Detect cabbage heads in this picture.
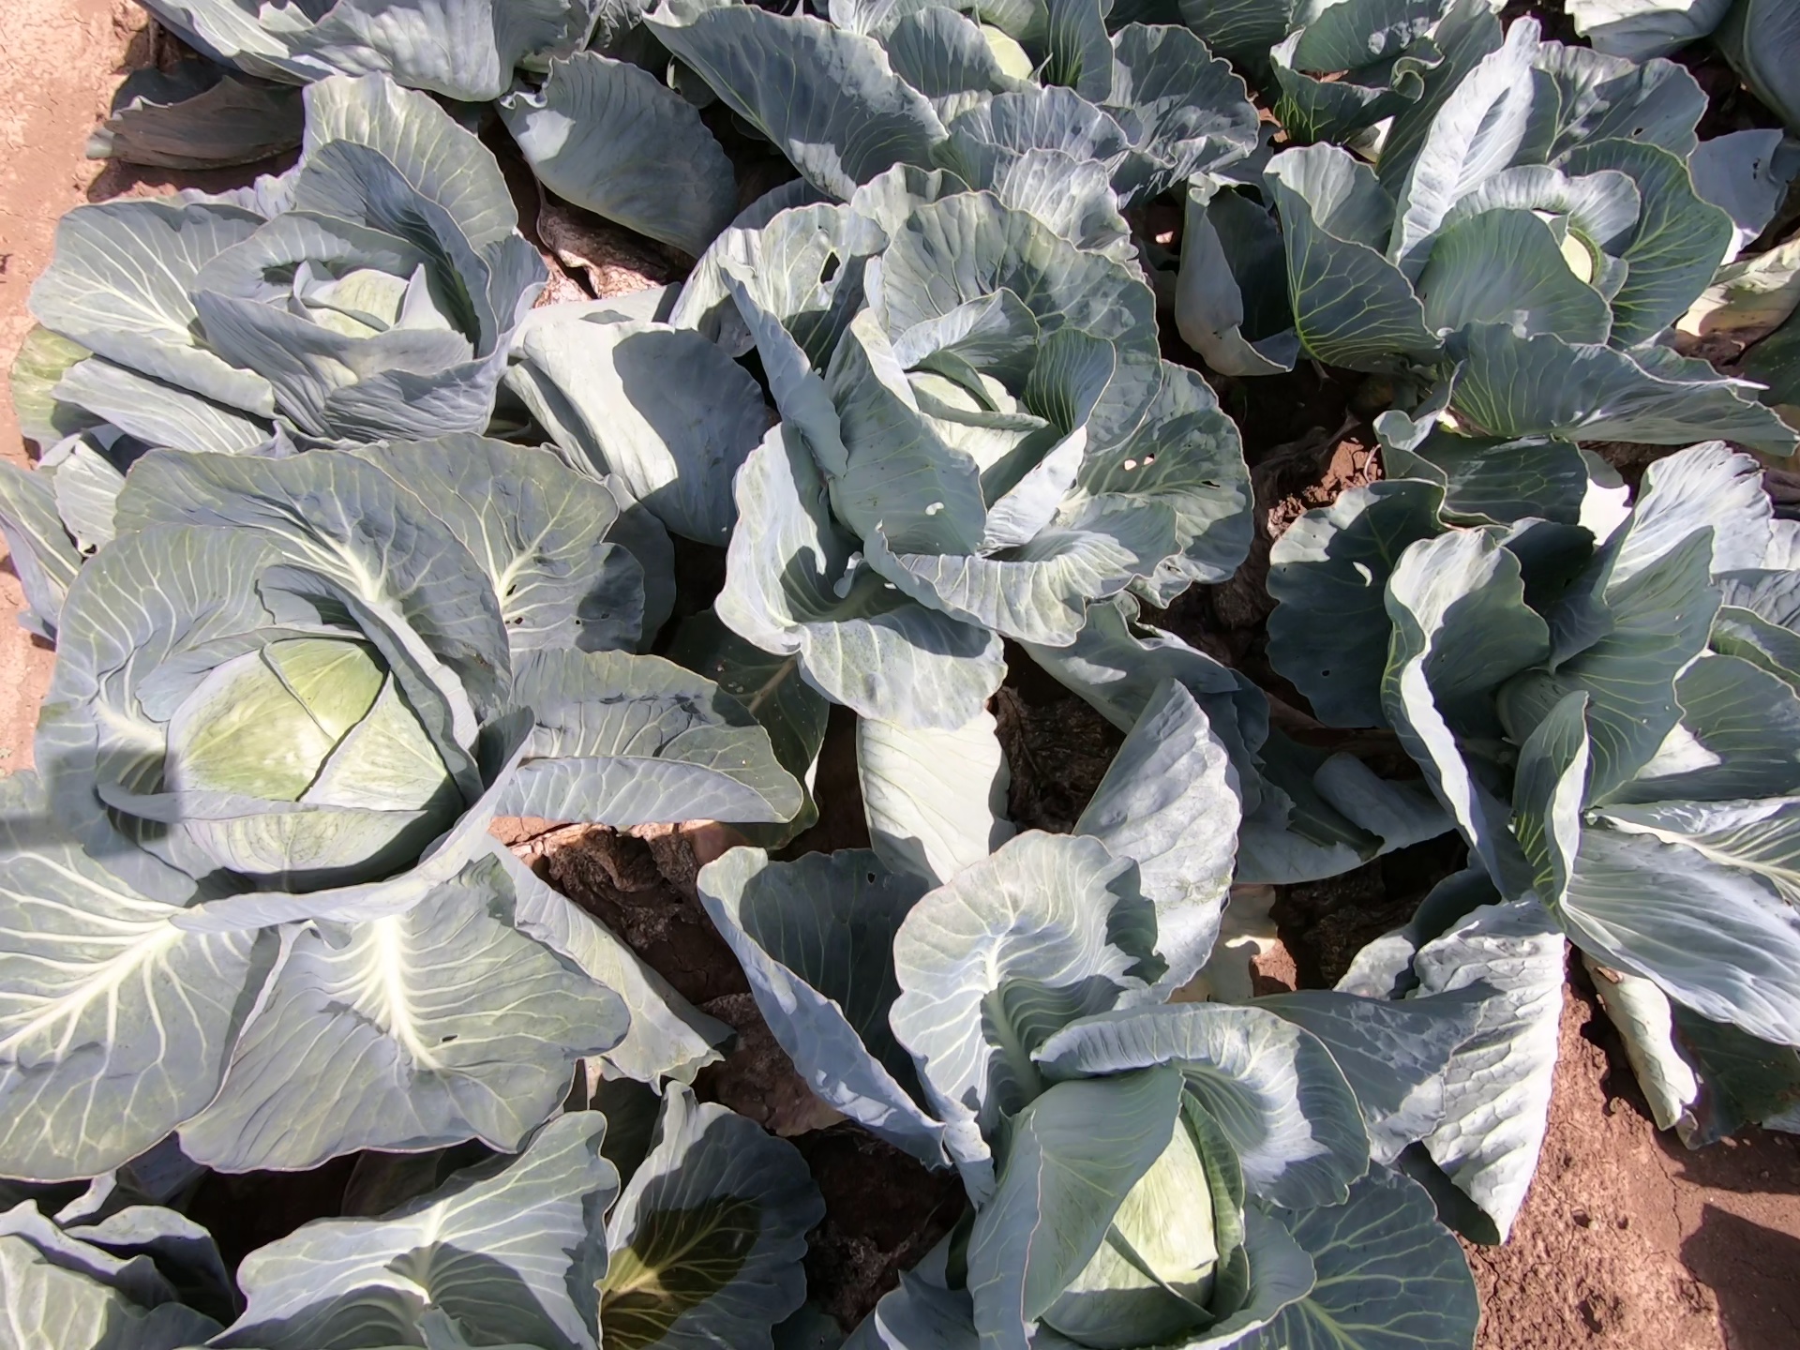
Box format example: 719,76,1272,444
1427,199,1597,349
163,613,478,892
1532,632,1783,820
1012,1088,1244,1348
858,368,1050,545
274,264,460,422
921,12,1045,158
